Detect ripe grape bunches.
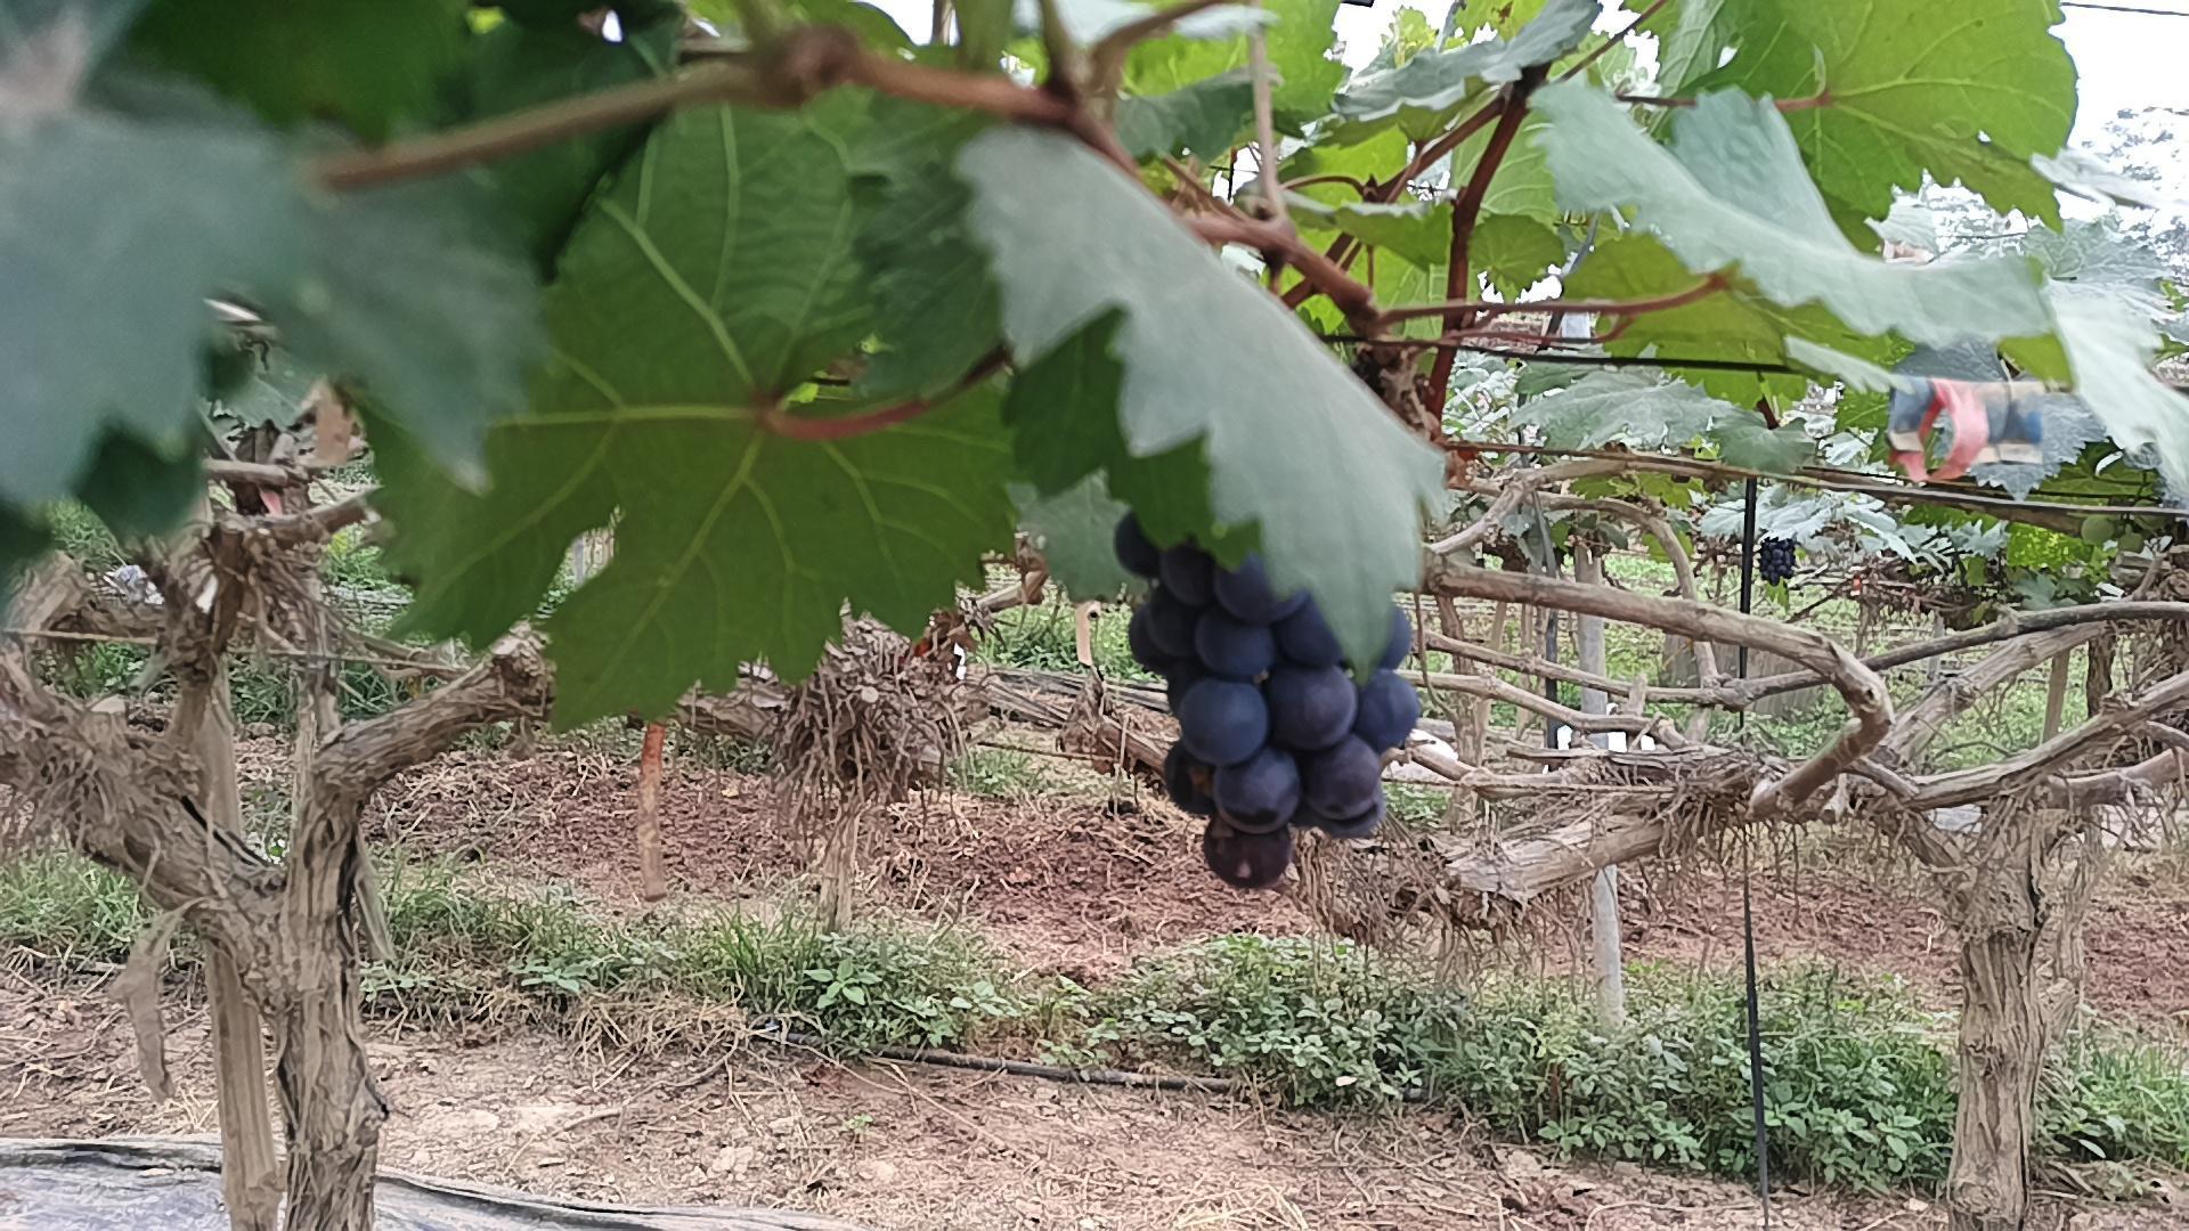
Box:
[1114,514,1418,887]
[1756,536,1796,585]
